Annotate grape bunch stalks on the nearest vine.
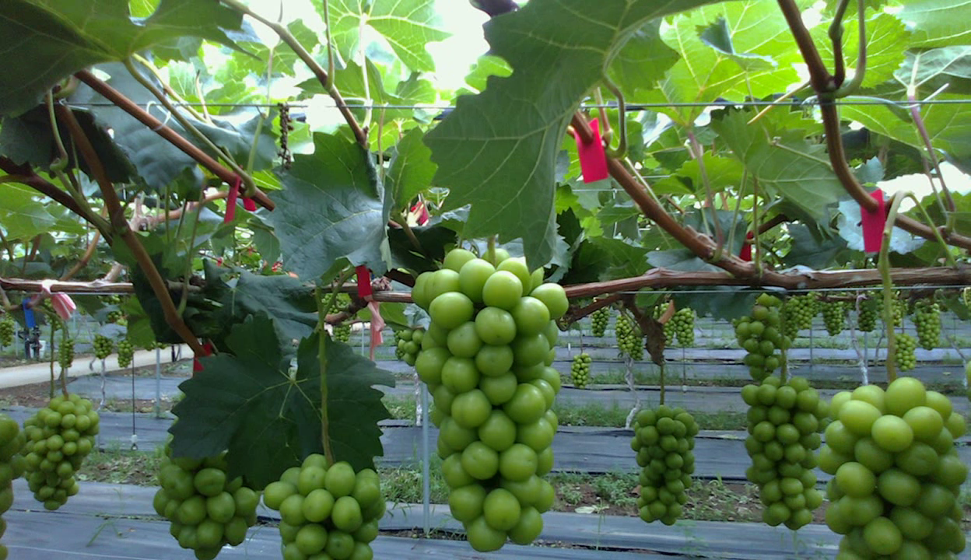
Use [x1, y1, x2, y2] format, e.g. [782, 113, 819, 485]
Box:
[314, 288, 335, 467]
[487, 233, 496, 267]
[878, 190, 904, 385]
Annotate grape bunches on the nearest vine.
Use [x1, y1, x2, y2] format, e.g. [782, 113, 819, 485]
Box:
[262, 454, 386, 558]
[0, 414, 28, 559]
[817, 377, 966, 559]
[152, 434, 261, 559]
[411, 248, 570, 551]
